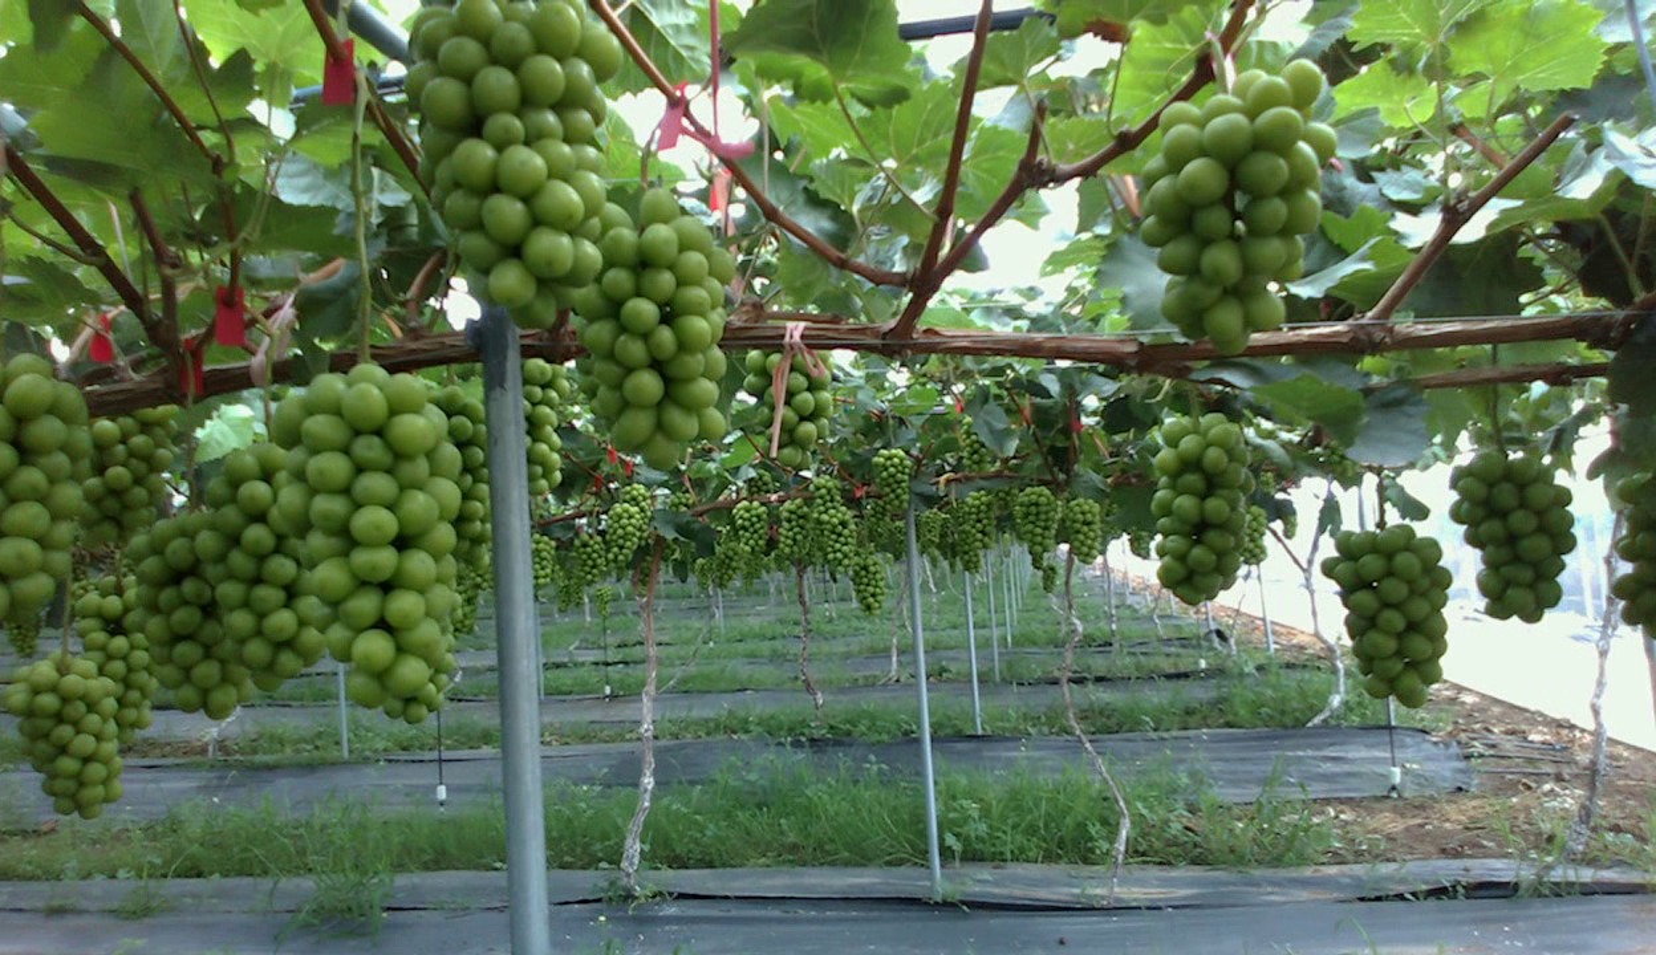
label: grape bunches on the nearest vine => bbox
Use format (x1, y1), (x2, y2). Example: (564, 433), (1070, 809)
(1140, 57), (1334, 357)
(130, 511), (253, 720)
(0, 354), (94, 621)
(272, 365), (462, 711)
(403, 0), (624, 334)
(576, 191), (734, 471)
(194, 440), (324, 691)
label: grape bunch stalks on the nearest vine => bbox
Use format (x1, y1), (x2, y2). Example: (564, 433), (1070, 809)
(1210, 37), (1227, 92)
(638, 123), (661, 191)
(352, 70), (372, 362)
(184, 351), (196, 509)
(244, 304), (276, 424)
(0, 320), (38, 387)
